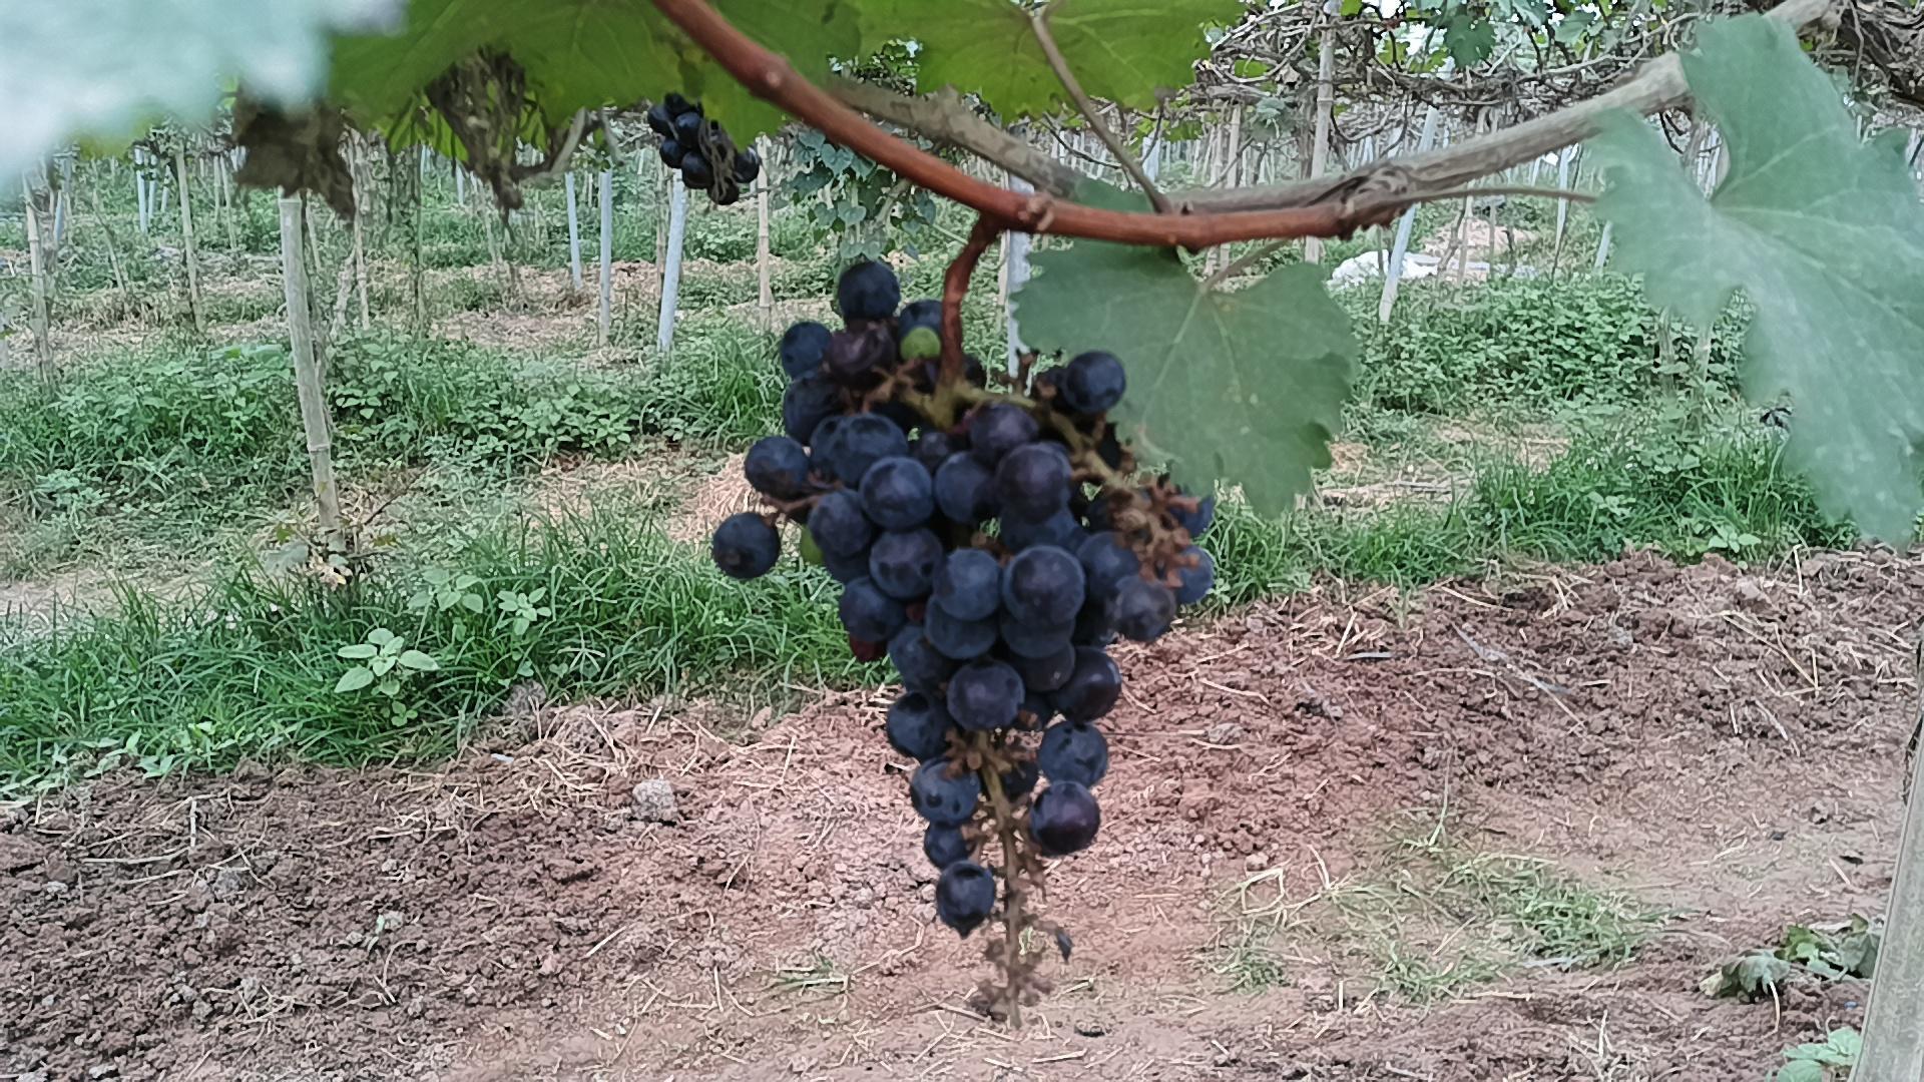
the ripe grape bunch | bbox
[646,92,761,205]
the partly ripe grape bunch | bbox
[708,260,1217,935]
